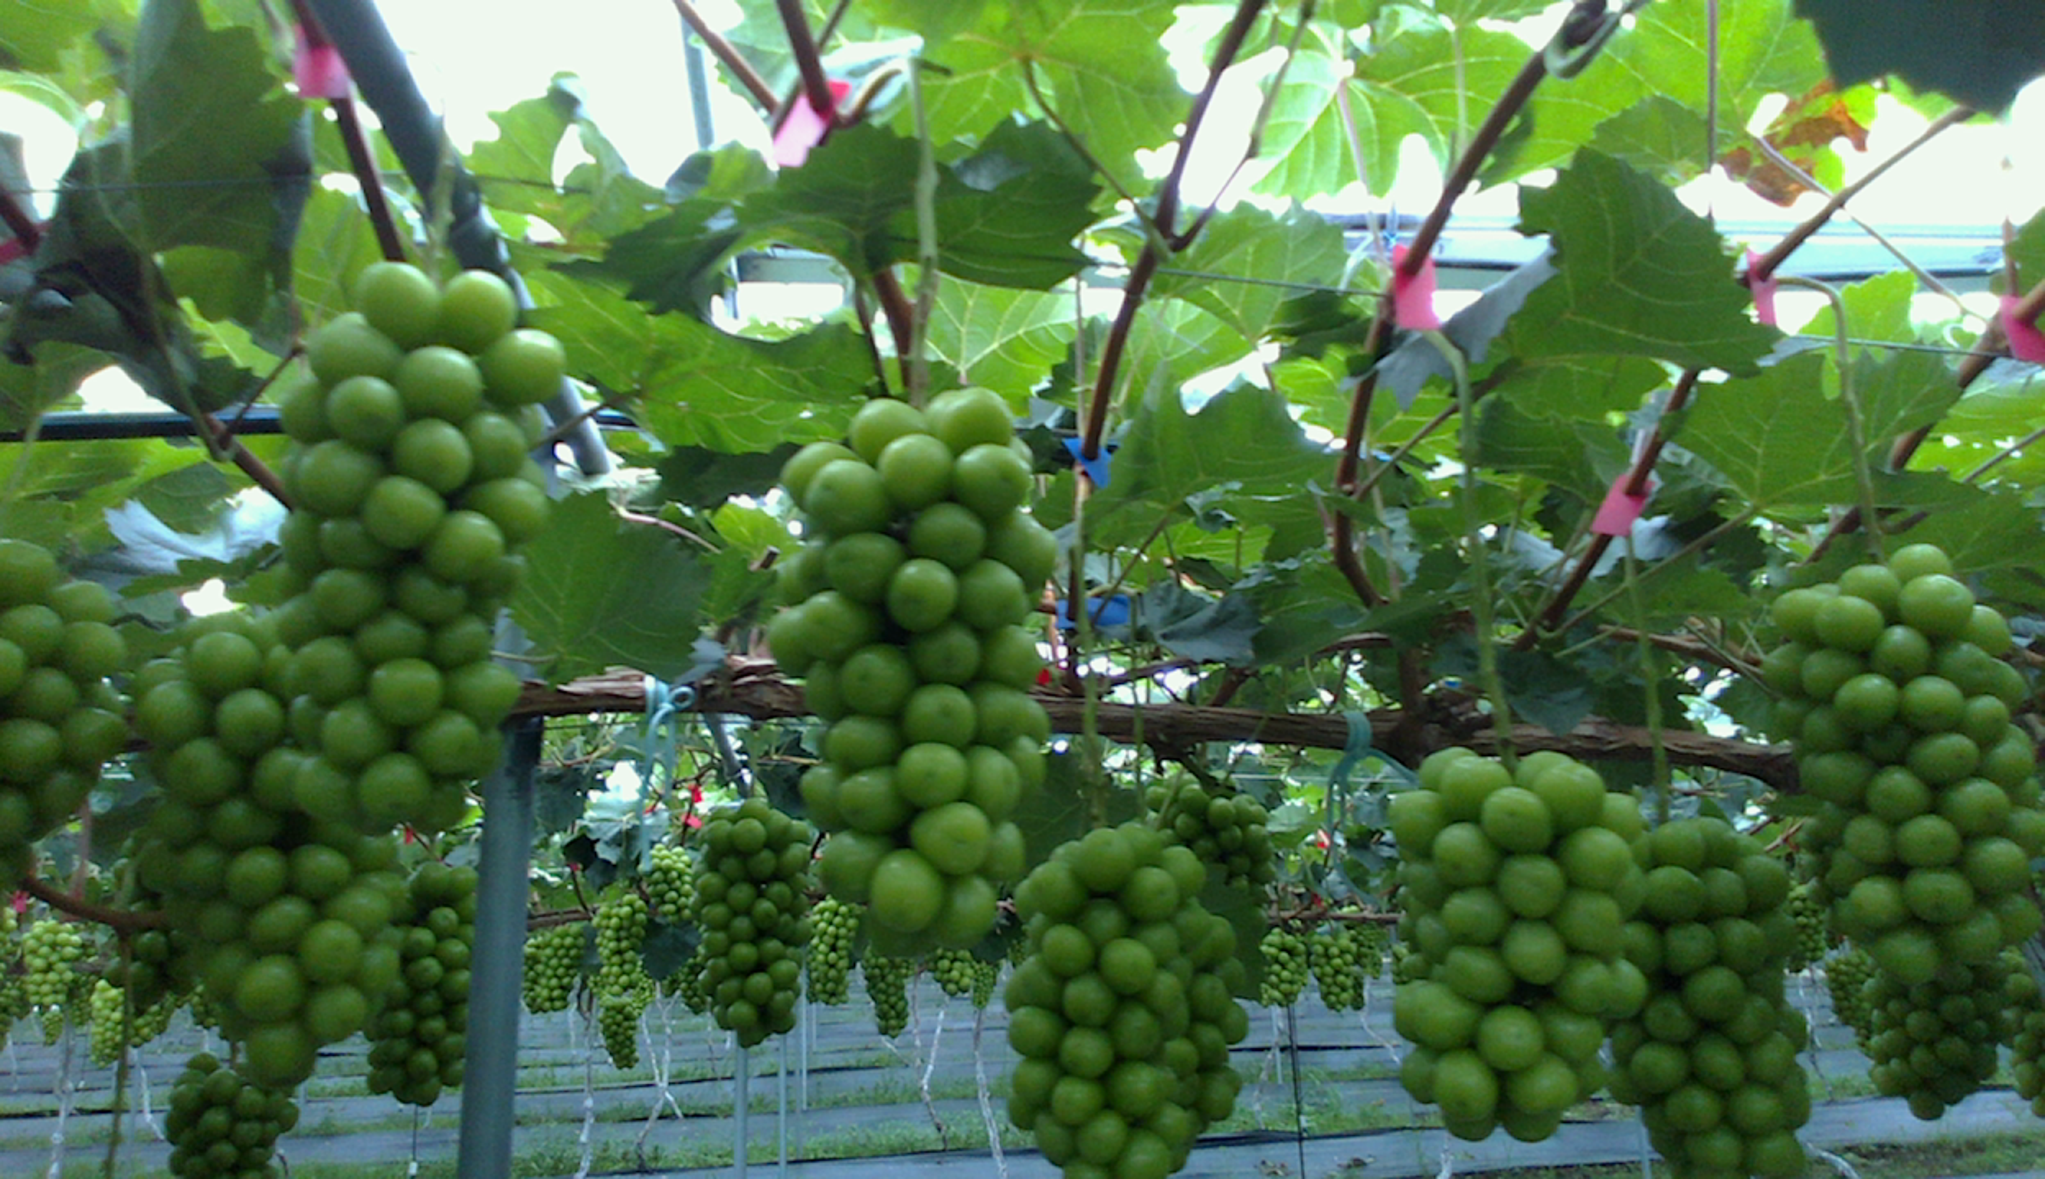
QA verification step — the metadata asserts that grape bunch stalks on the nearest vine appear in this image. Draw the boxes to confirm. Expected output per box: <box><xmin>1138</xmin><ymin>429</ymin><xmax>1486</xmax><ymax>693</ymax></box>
<box><xmin>1778</xmin><ymin>275</ymin><xmax>1884</xmax><ymax>560</ymax></box>
<box><xmin>1072</xmin><ymin>483</ymin><xmax>1108</xmax><ymax>820</ymax></box>
<box><xmin>429</xmin><ymin>136</ymin><xmax>452</xmax><ymax>277</ymax></box>
<box><xmin>1429</xmin><ymin>329</ymin><xmax>1516</xmax><ymax>768</ymax></box>
<box><xmin>855</xmin><ymin>59</ymin><xmax>937</xmax><ymax>400</ymax></box>
<box><xmin>1627</xmin><ymin>534</ymin><xmax>1670</xmax><ymax>824</ymax></box>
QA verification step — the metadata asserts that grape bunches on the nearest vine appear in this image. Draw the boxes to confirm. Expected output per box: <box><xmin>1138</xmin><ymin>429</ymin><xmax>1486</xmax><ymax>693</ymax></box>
<box><xmin>1760</xmin><ymin>545</ymin><xmax>2043</xmax><ymax>984</ymax></box>
<box><xmin>764</xmin><ymin>386</ymin><xmax>1055</xmax><ymax>966</ymax></box>
<box><xmin>0</xmin><ymin>537</ymin><xmax>125</xmax><ymax>847</ymax></box>
<box><xmin>136</xmin><ymin>609</ymin><xmax>410</xmax><ymax>1094</ymax></box>
<box><xmin>1003</xmin><ymin>824</ymin><xmax>1211</xmax><ymax>1177</ymax></box>
<box><xmin>272</xmin><ymin>259</ymin><xmax>567</xmax><ymax>843</ymax></box>
<box><xmin>1609</xmin><ymin>817</ymin><xmax>1814</xmax><ymax>1177</ymax></box>
<box><xmin>1385</xmin><ymin>742</ymin><xmax>1645</xmax><ymax>1146</ymax></box>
